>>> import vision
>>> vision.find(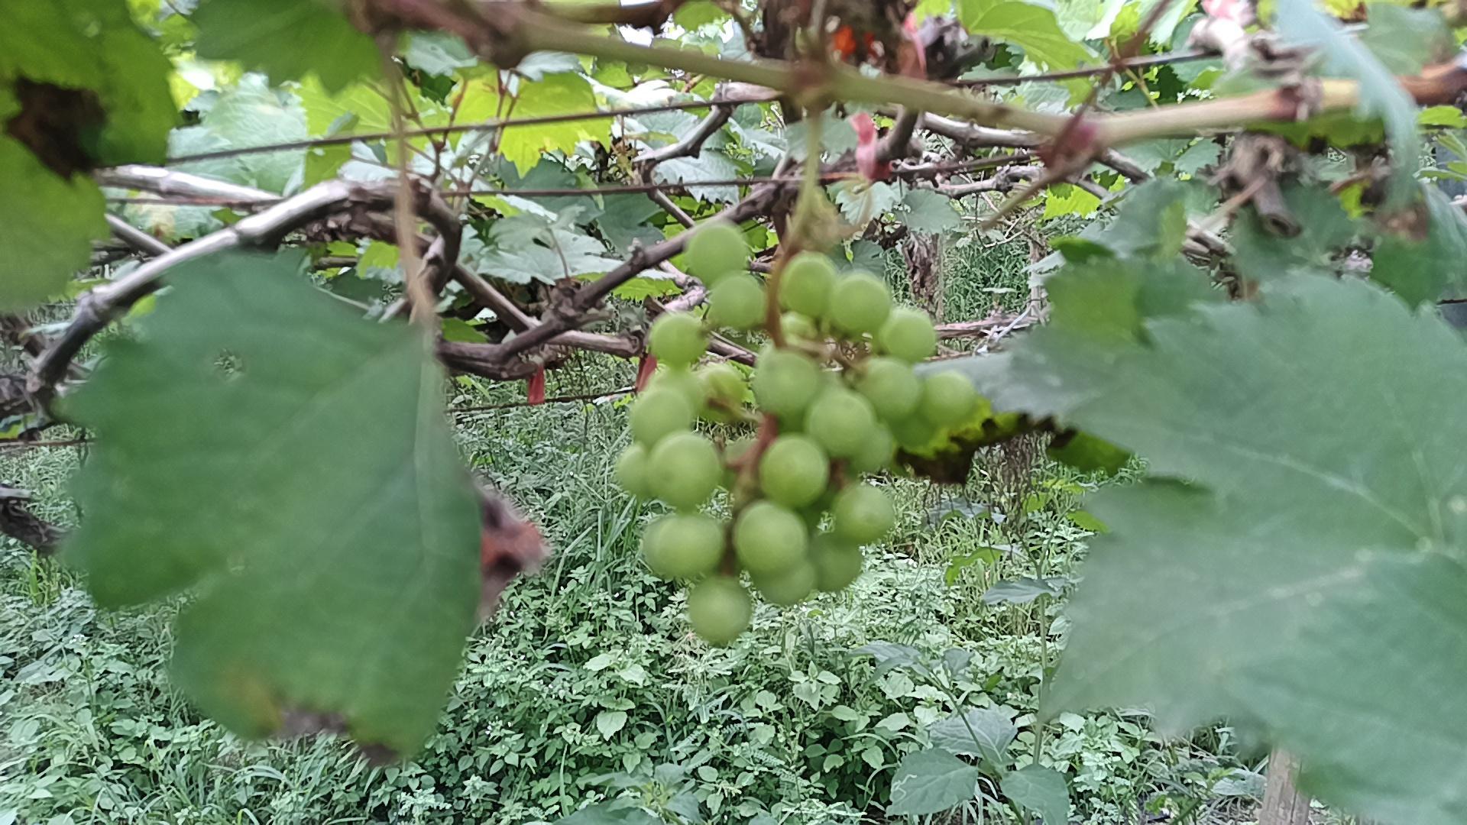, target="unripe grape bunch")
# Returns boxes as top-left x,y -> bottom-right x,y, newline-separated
617,229 -> 988,644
